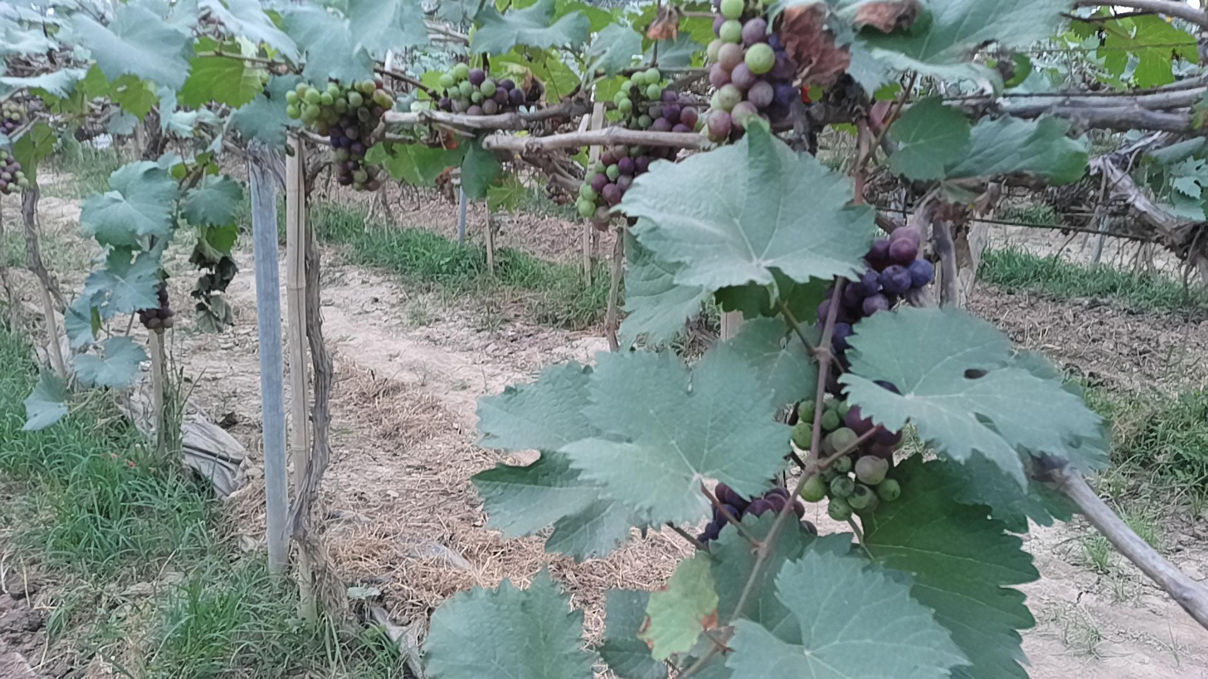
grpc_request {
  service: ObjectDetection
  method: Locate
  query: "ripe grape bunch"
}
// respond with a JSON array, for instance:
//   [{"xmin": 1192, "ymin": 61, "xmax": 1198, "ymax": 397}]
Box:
[{"xmin": 696, "ymin": 483, "xmax": 817, "ymax": 548}]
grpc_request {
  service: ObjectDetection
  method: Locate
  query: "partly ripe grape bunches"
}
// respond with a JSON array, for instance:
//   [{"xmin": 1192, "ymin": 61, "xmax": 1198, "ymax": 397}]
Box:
[
  {"xmin": 576, "ymin": 69, "xmax": 704, "ymax": 230},
  {"xmin": 0, "ymin": 103, "xmax": 27, "ymax": 194},
  {"xmin": 792, "ymin": 228, "xmax": 934, "ymax": 521},
  {"xmin": 427, "ymin": 63, "xmax": 528, "ymax": 115},
  {"xmin": 286, "ymin": 77, "xmax": 393, "ymax": 190},
  {"xmin": 705, "ymin": 0, "xmax": 804, "ymax": 142},
  {"xmin": 137, "ymin": 283, "xmax": 173, "ymax": 332}
]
